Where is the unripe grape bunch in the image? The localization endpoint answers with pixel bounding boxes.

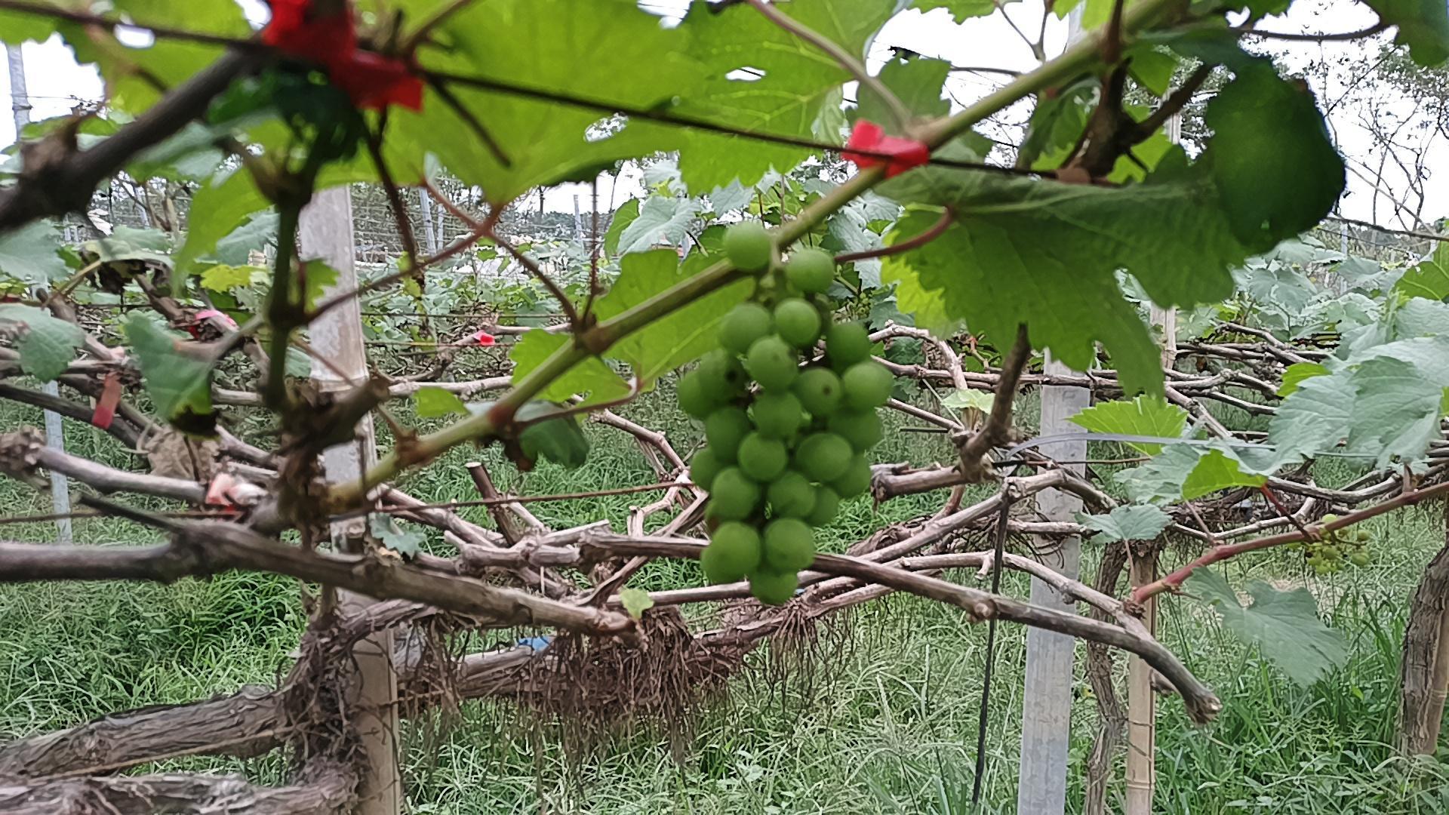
[678,224,893,604]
